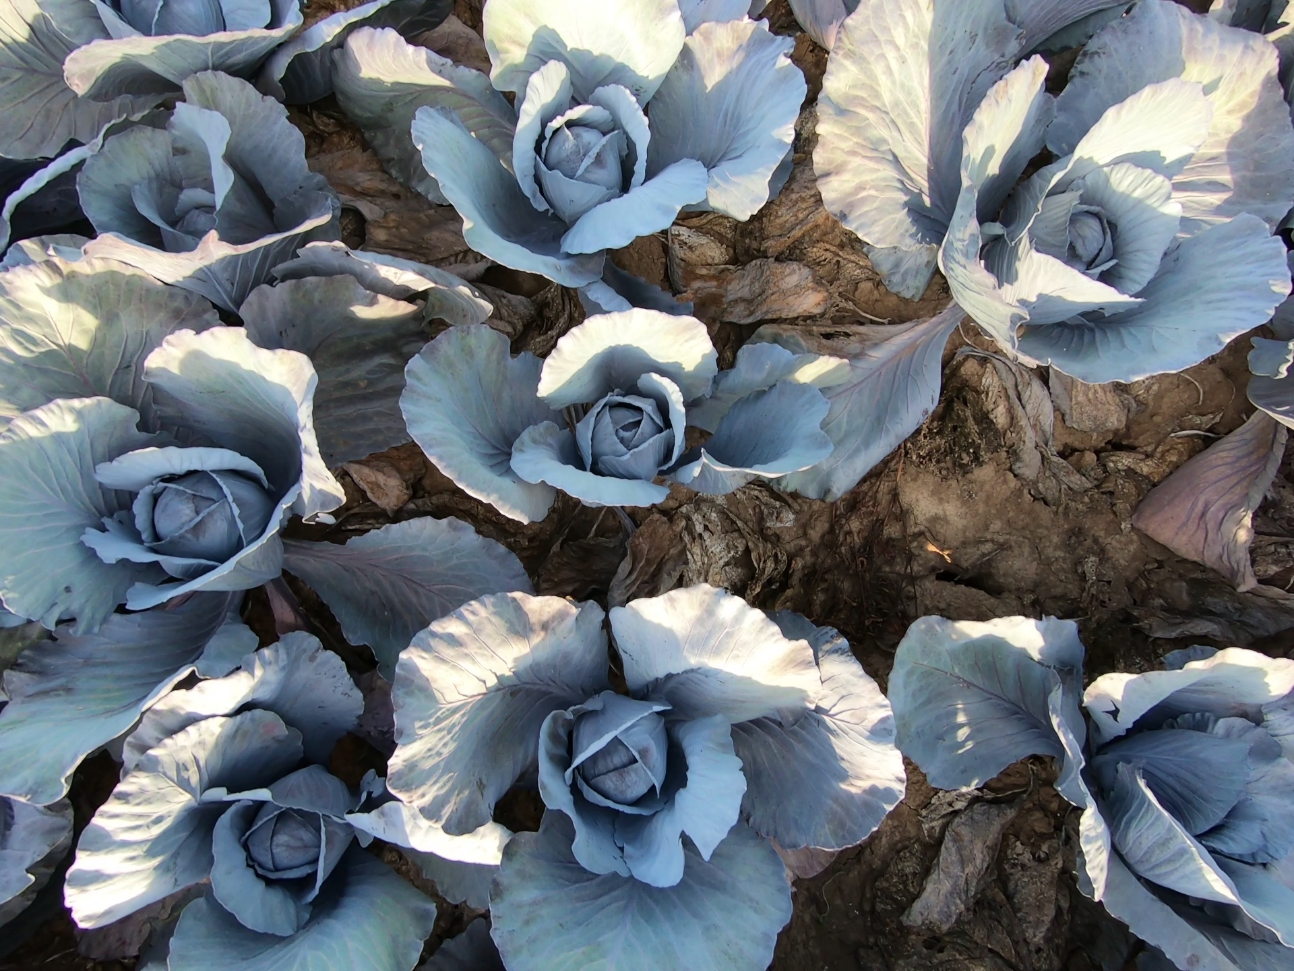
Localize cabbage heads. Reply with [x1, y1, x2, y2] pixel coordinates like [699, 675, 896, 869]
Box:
[168, 202, 266, 299]
[582, 704, 668, 803]
[244, 776, 346, 876]
[118, 2, 254, 67]
[588, 400, 663, 472]
[1121, 745, 1231, 851]
[1023, 200, 1114, 312]
[154, 470, 255, 555]
[538, 127, 622, 214]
